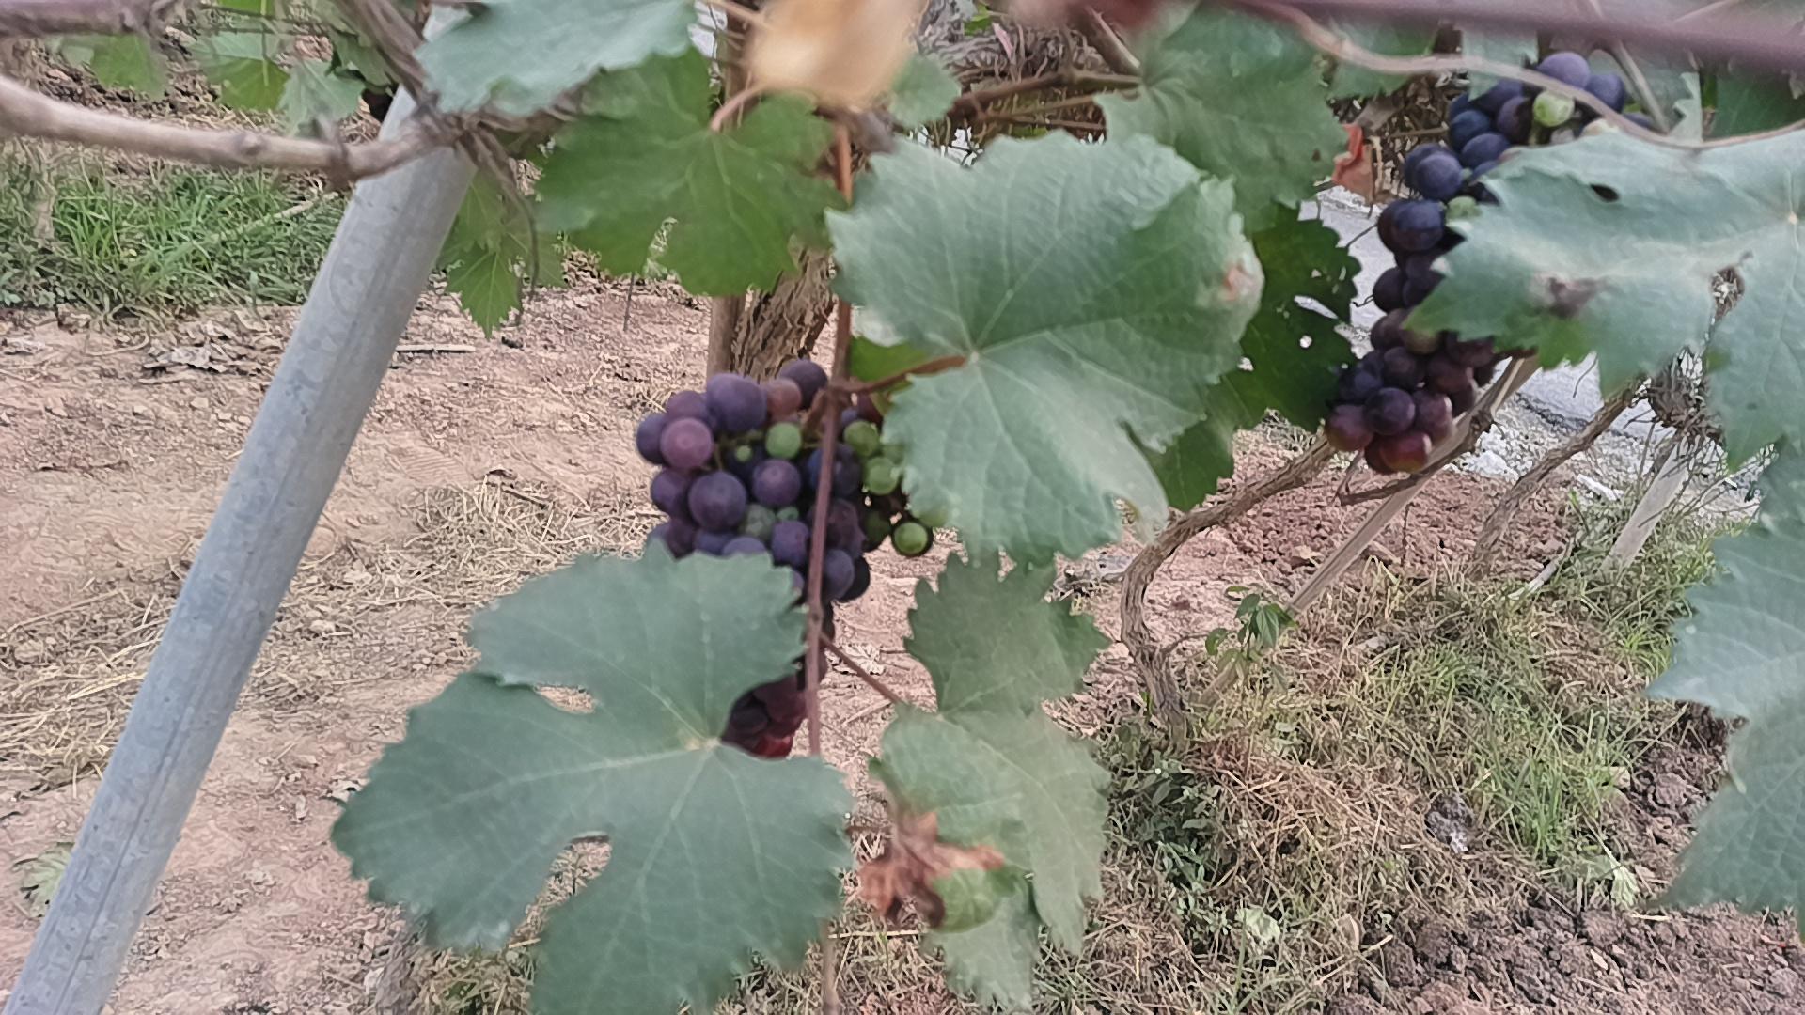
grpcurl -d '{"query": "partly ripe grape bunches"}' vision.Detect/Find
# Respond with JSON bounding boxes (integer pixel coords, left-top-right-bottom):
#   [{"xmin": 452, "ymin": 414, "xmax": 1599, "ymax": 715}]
[
  {"xmin": 636, "ymin": 358, "xmax": 951, "ymax": 759},
  {"xmin": 1323, "ymin": 52, "xmax": 1626, "ymax": 474}
]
